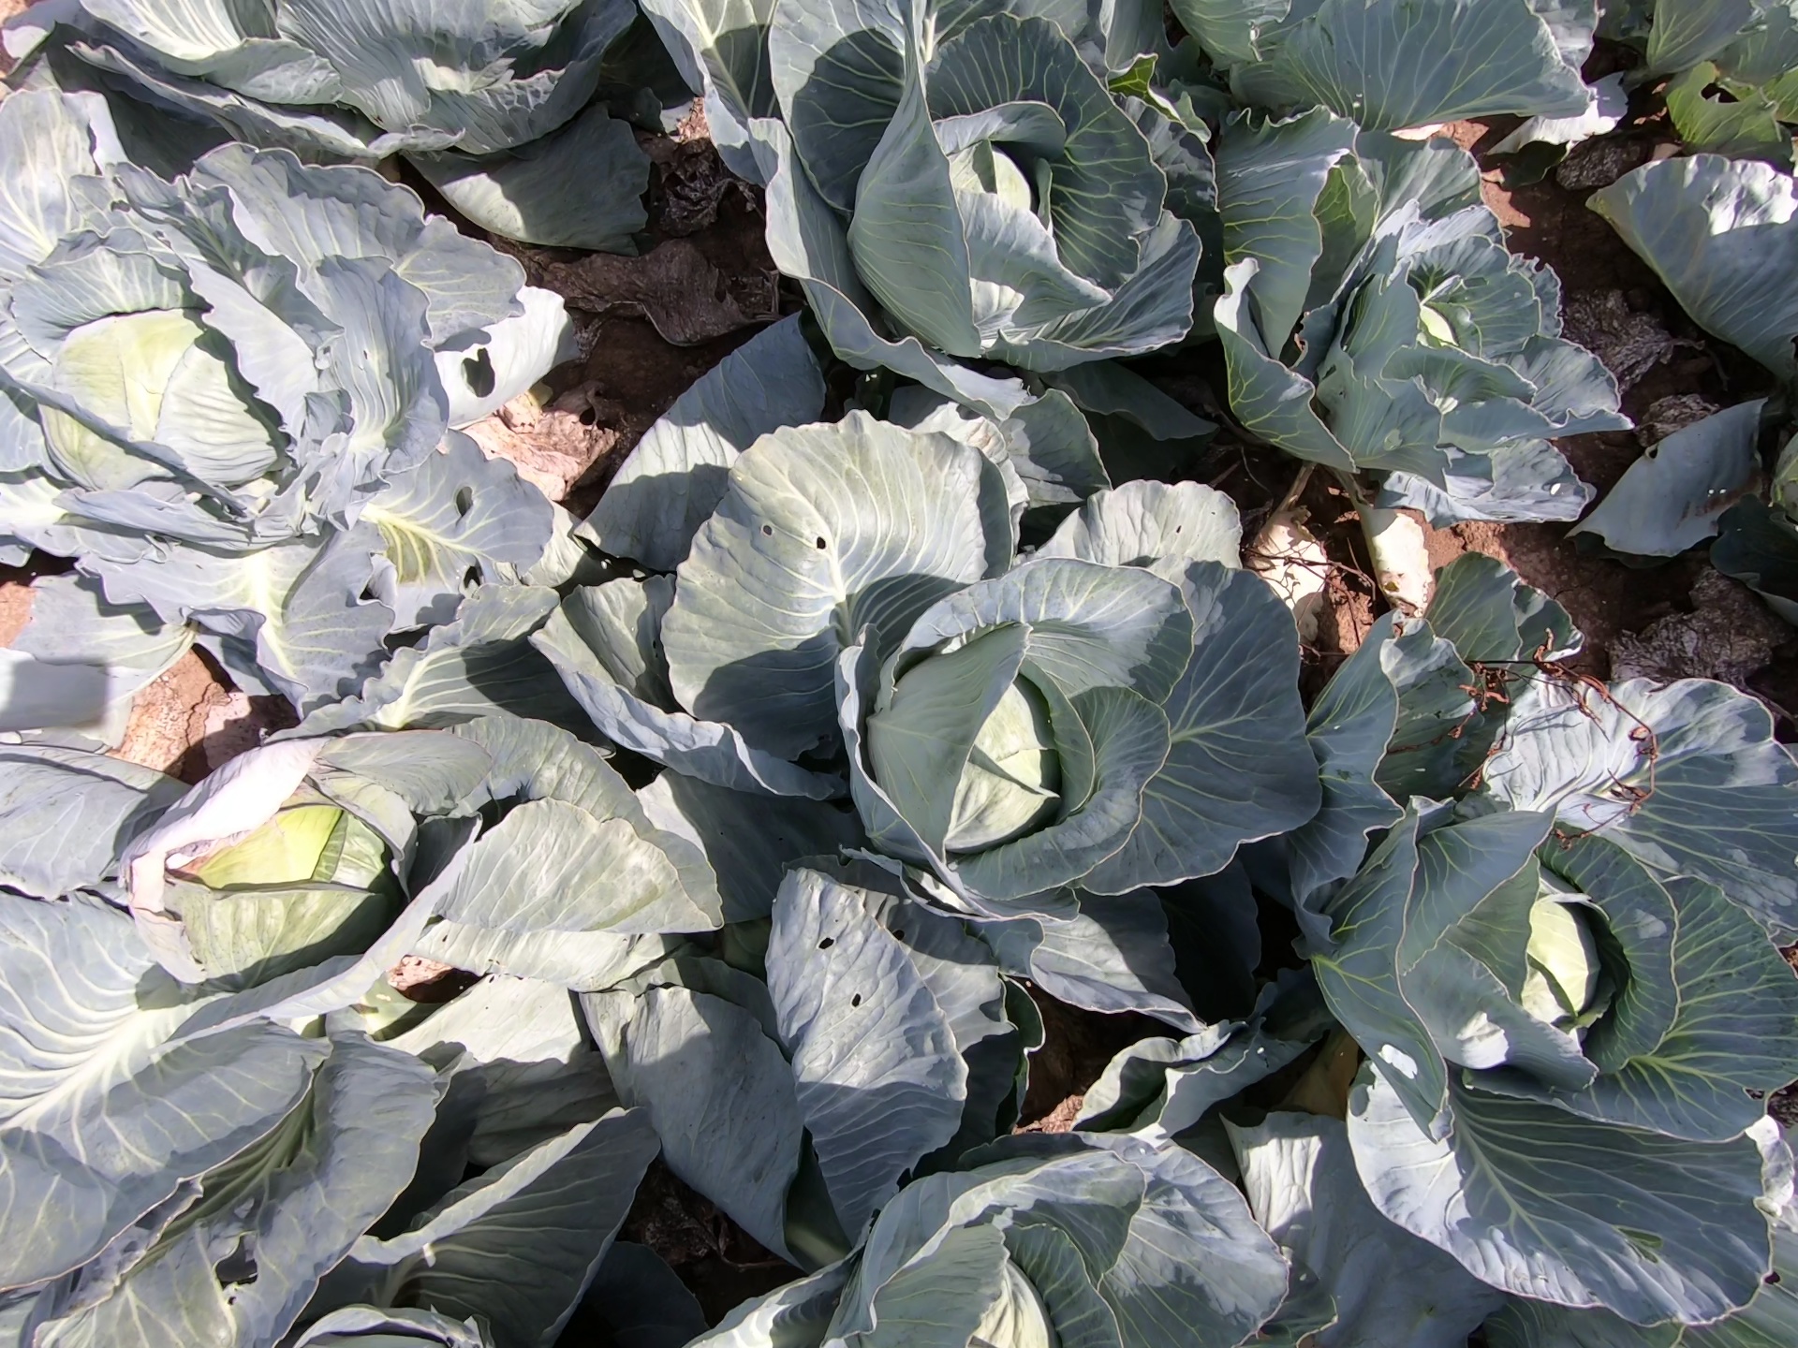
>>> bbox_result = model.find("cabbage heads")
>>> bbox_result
[45,292,291,489]
[868,657,1076,852]
[862,1235,1064,1347]
[1357,299,1466,419]
[174,767,401,999]
[1411,857,1599,1064]
[898,139,1048,317]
